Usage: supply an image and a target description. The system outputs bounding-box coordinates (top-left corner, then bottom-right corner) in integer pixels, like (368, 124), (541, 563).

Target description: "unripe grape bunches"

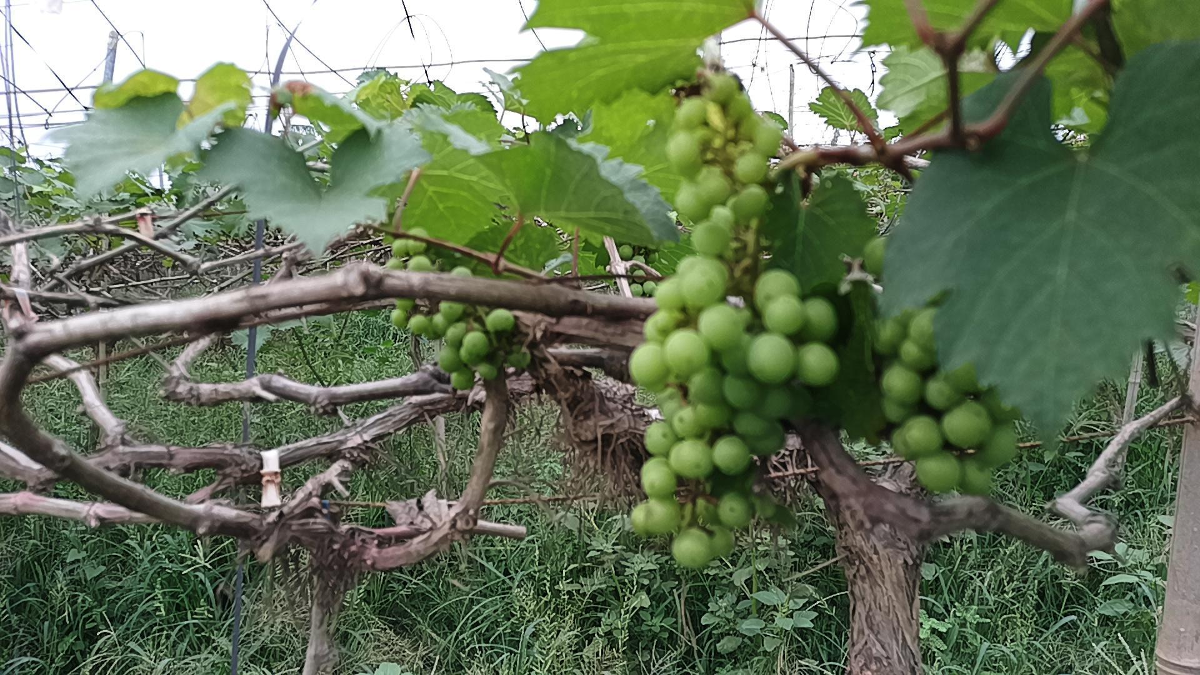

(618, 244), (660, 296)
(630, 70), (838, 567)
(863, 238), (1018, 494)
(387, 227), (531, 391)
